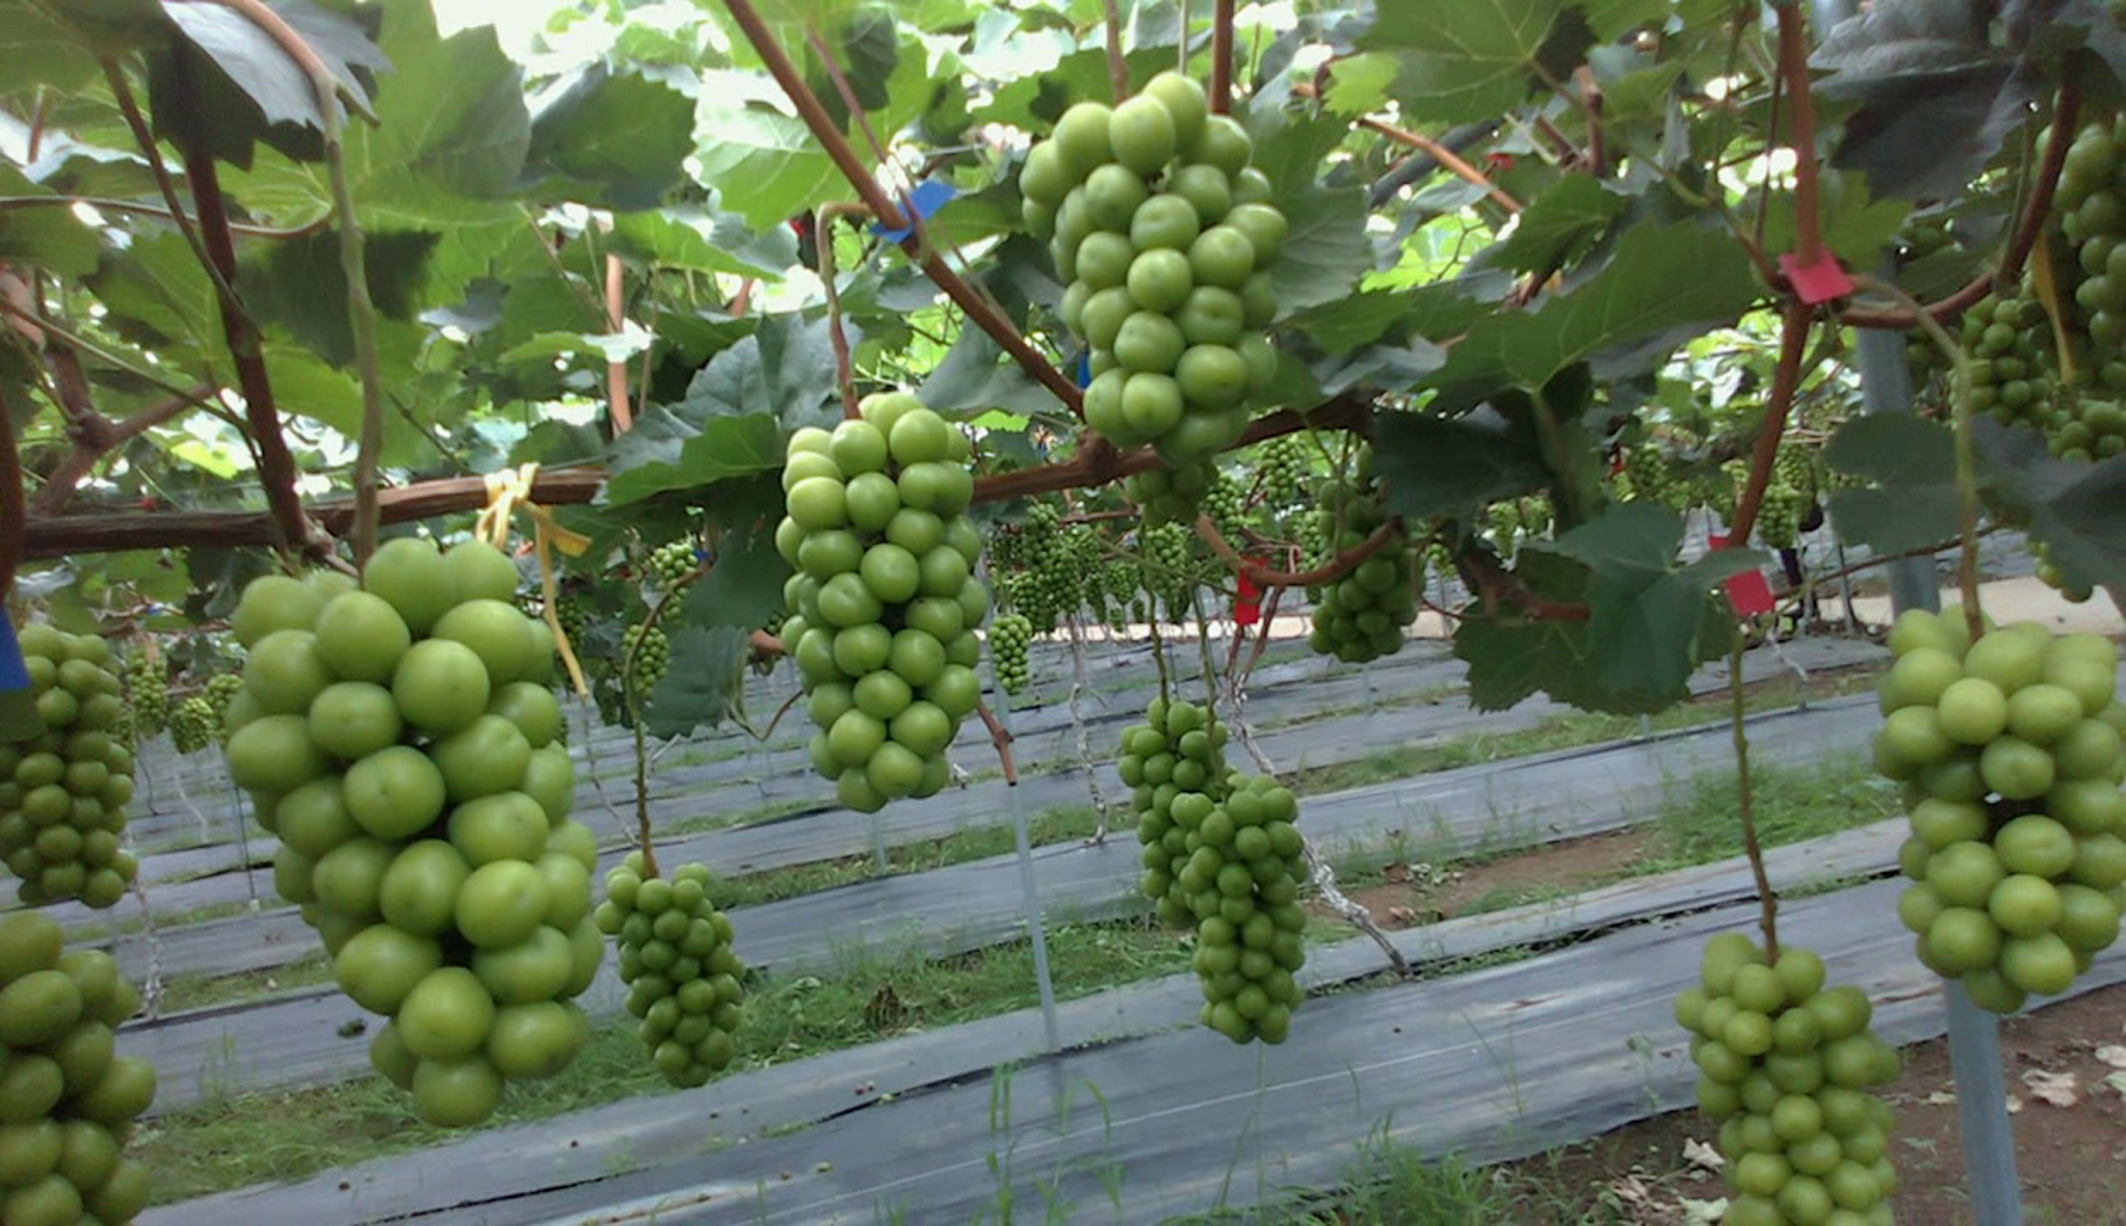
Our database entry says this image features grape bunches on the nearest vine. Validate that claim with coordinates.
[1019,73,1286,465]
[1872,599,2124,1013]
[1668,930,1899,1224]
[0,913,158,1224]
[223,538,603,1127]
[775,390,985,812]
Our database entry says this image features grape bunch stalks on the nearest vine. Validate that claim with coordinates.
[1860,276,1983,642]
[816,199,864,419]
[1106,0,1129,99]
[237,0,385,565]
[1731,630,1782,967]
